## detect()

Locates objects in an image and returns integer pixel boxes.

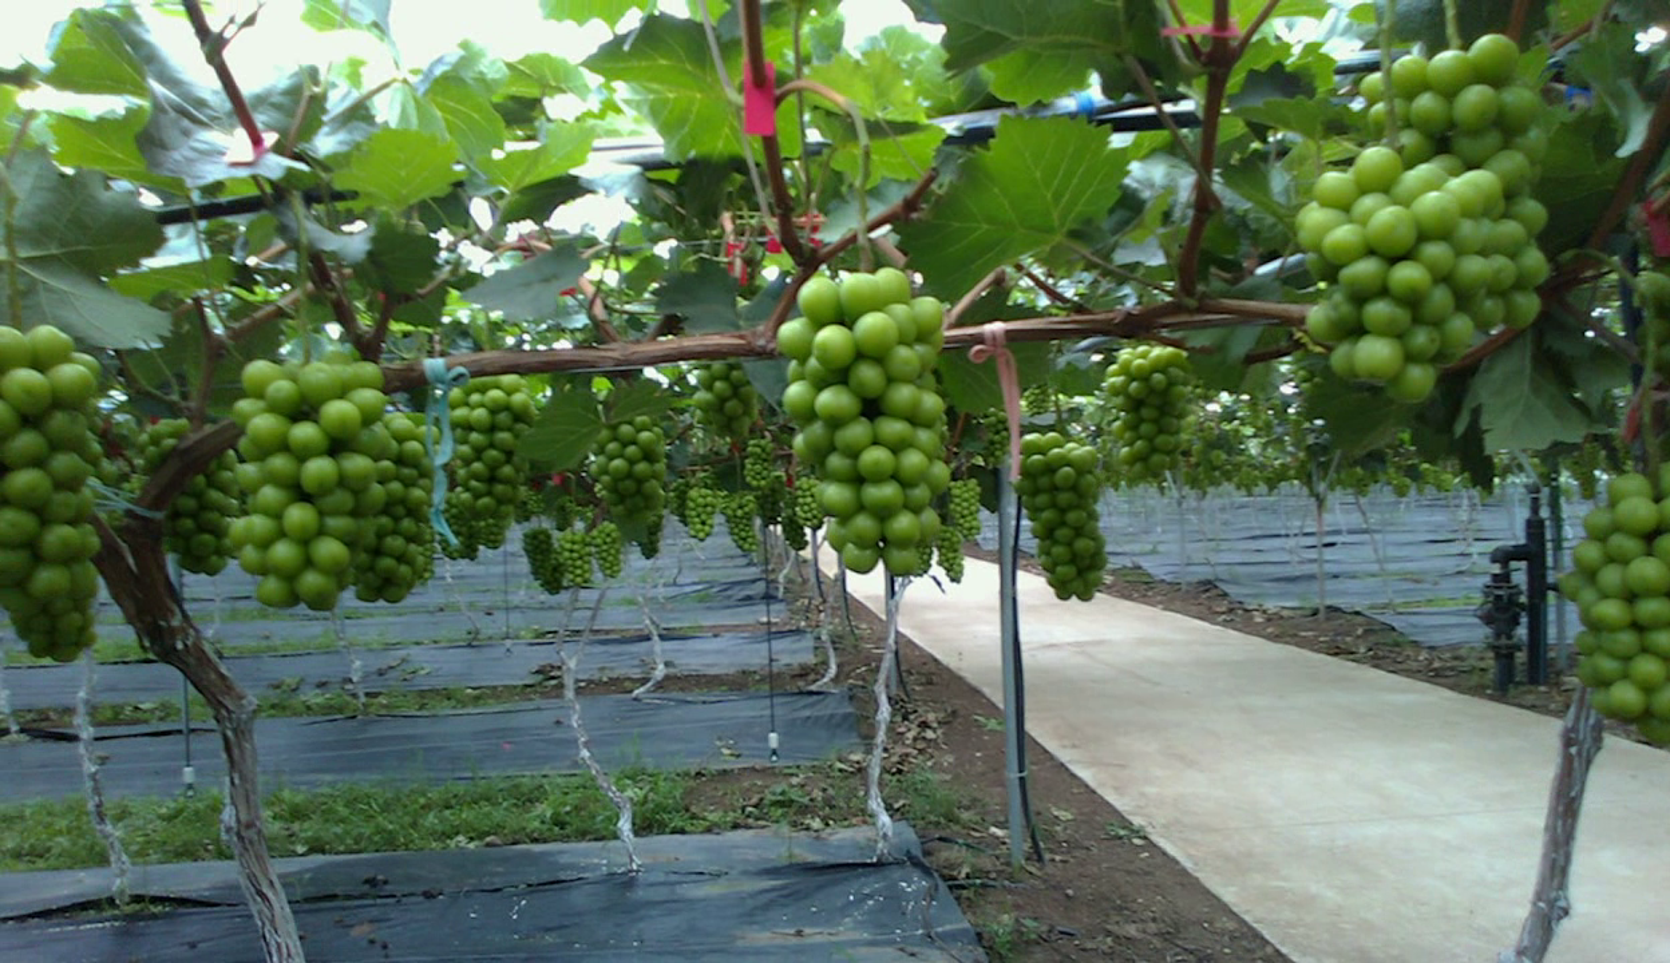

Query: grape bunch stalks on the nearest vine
[273,186,312,364]
[1378,1,1402,159]
[0,169,27,332]
[1556,246,1663,502]
[1443,0,1460,48]
[776,79,874,273]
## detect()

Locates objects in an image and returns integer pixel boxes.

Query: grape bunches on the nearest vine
[1295,146,1504,404]
[1558,463,1669,746]
[226,348,391,614]
[1,324,103,665]
[776,267,954,575]
[1358,31,1551,332]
